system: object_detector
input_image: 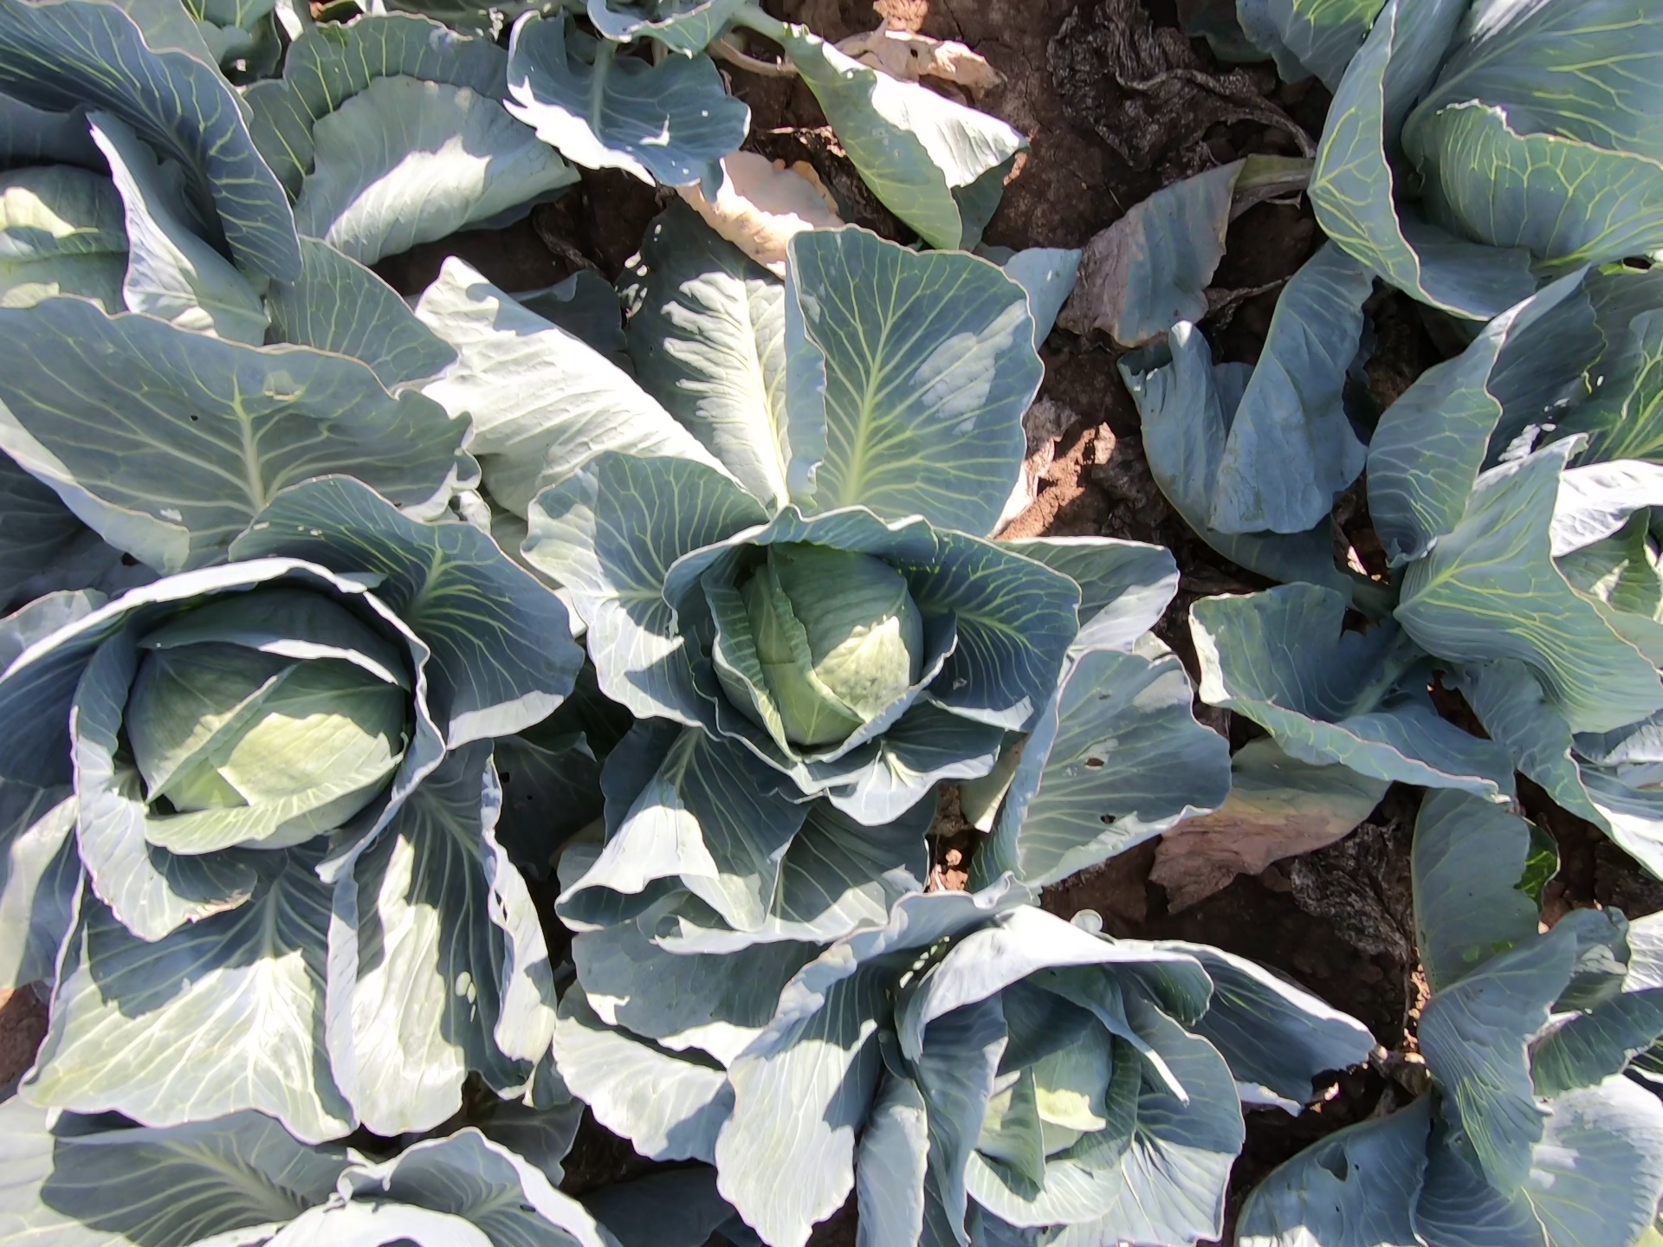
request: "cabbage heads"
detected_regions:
[929,942,1114,1156]
[1490,504,1661,670]
[728,546,925,739]
[2,161,191,392]
[126,593,417,836]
